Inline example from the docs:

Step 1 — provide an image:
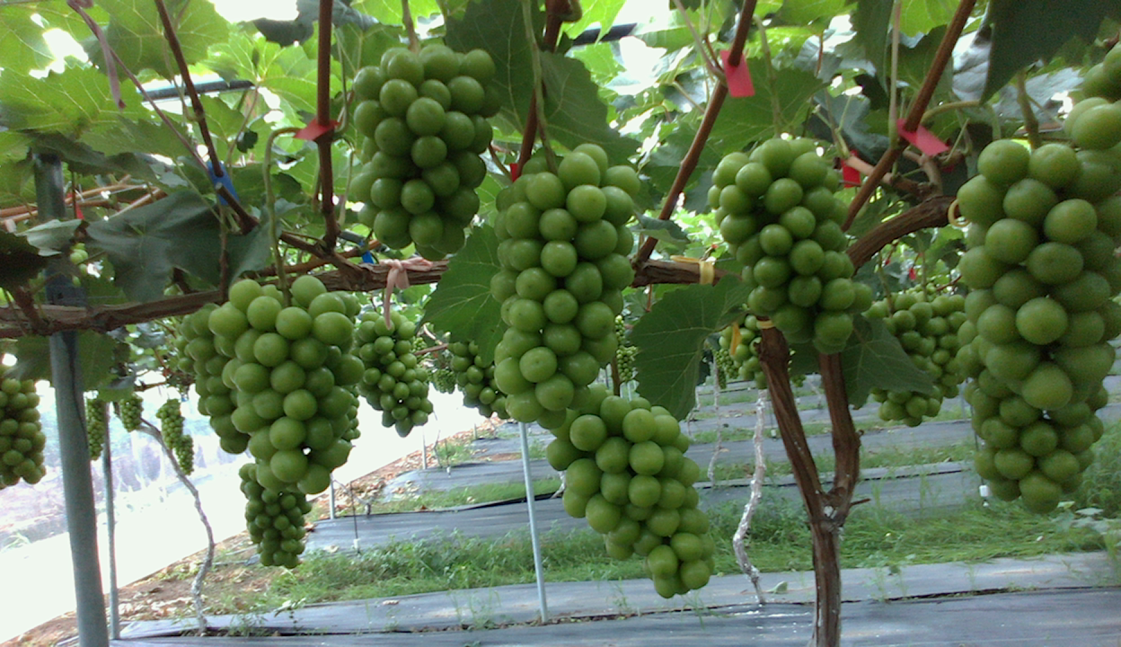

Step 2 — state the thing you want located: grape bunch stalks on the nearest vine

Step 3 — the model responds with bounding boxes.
[753,16,781,141]
[262,126,303,307]
[522,5,555,173]
[611,353,619,397]
[1014,63,1041,150]
[401,0,423,52]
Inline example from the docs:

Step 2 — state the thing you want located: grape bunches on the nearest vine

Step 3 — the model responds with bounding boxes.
[349,44,502,254]
[491,143,641,430]
[958,138,1120,412]
[208,275,363,494]
[709,137,874,353]
[547,385,714,598]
